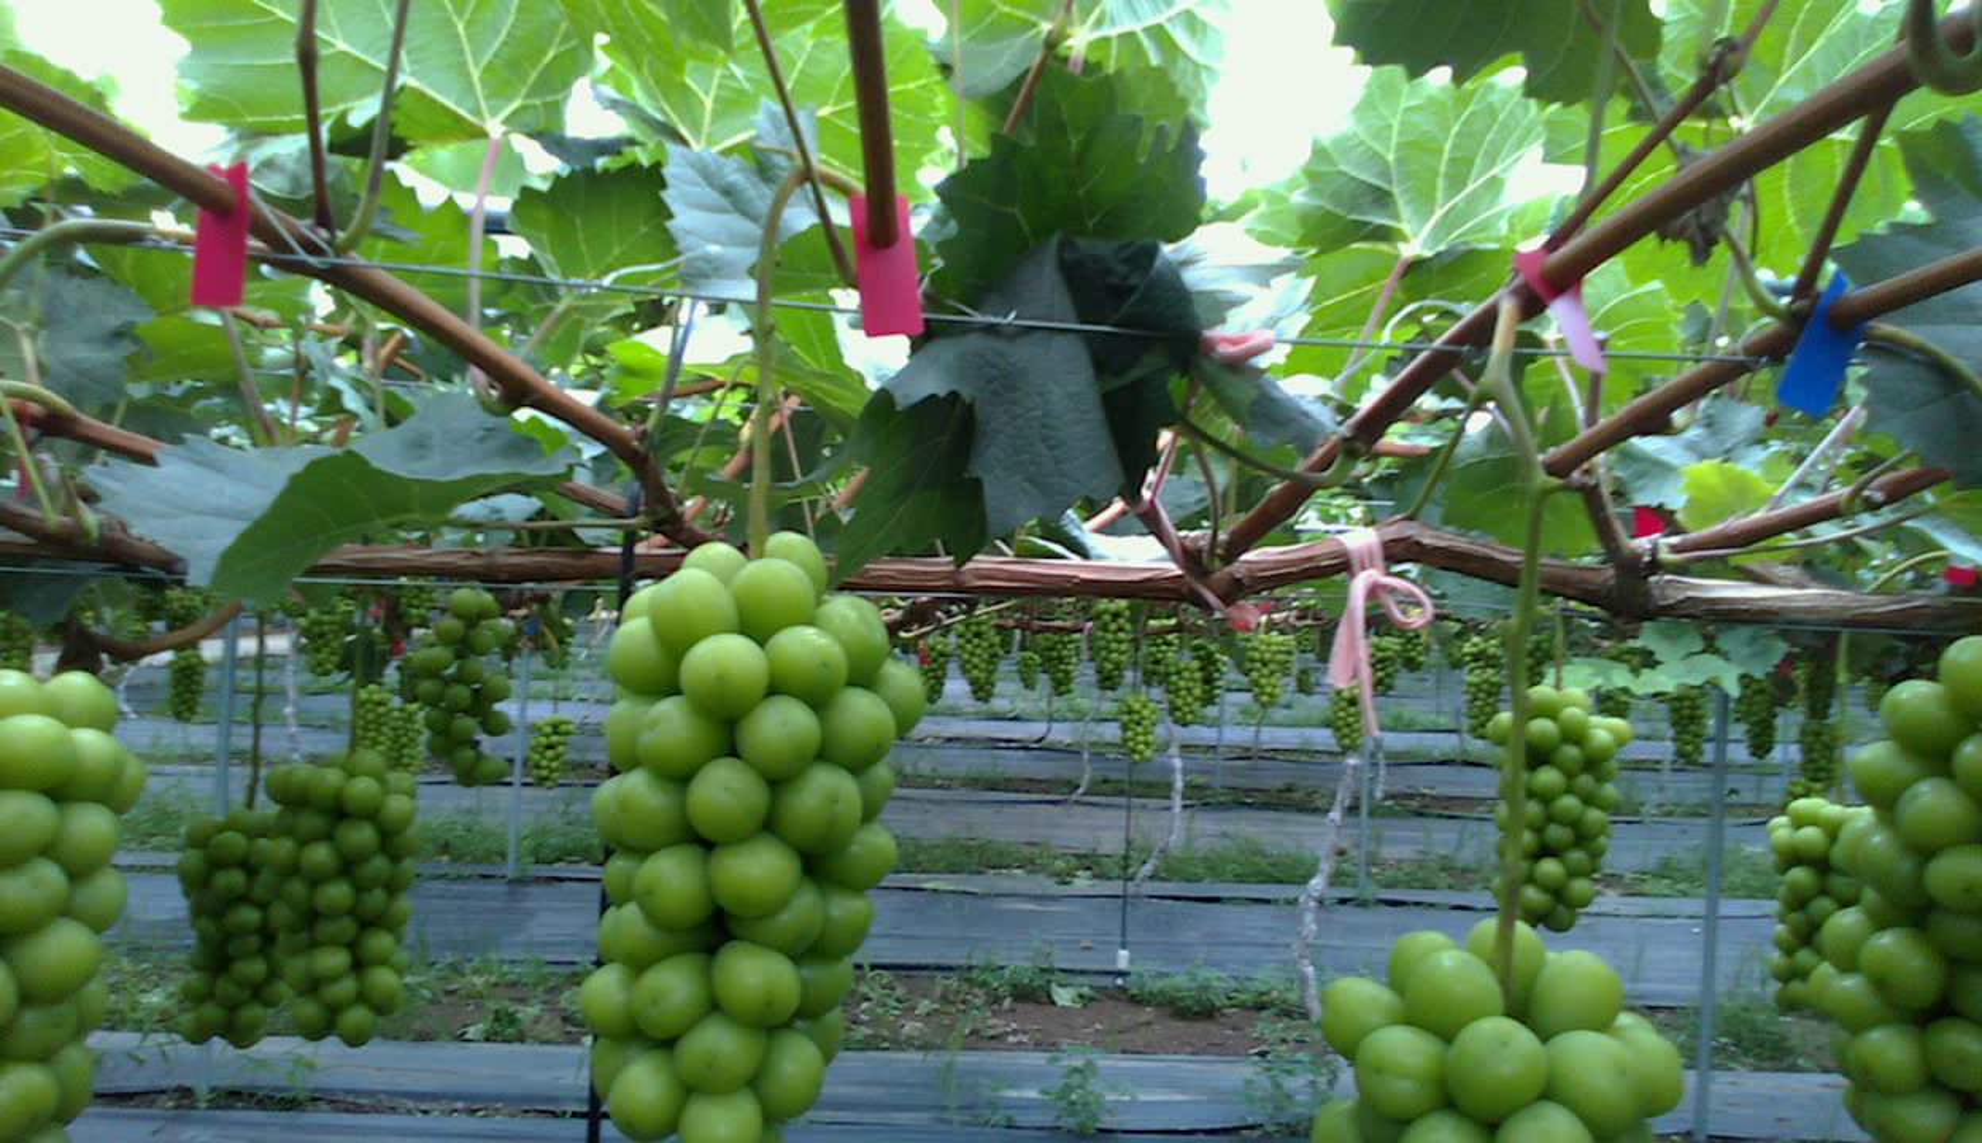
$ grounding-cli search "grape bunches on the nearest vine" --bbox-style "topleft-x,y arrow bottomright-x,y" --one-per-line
578,529 -> 926,1141
0,670 -> 145,1141
1806,633 -> 1980,1140
1310,918 -> 1685,1140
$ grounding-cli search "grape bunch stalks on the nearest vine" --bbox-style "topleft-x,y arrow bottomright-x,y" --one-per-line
748,162 -> 864,562
1483,302 -> 1547,1011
